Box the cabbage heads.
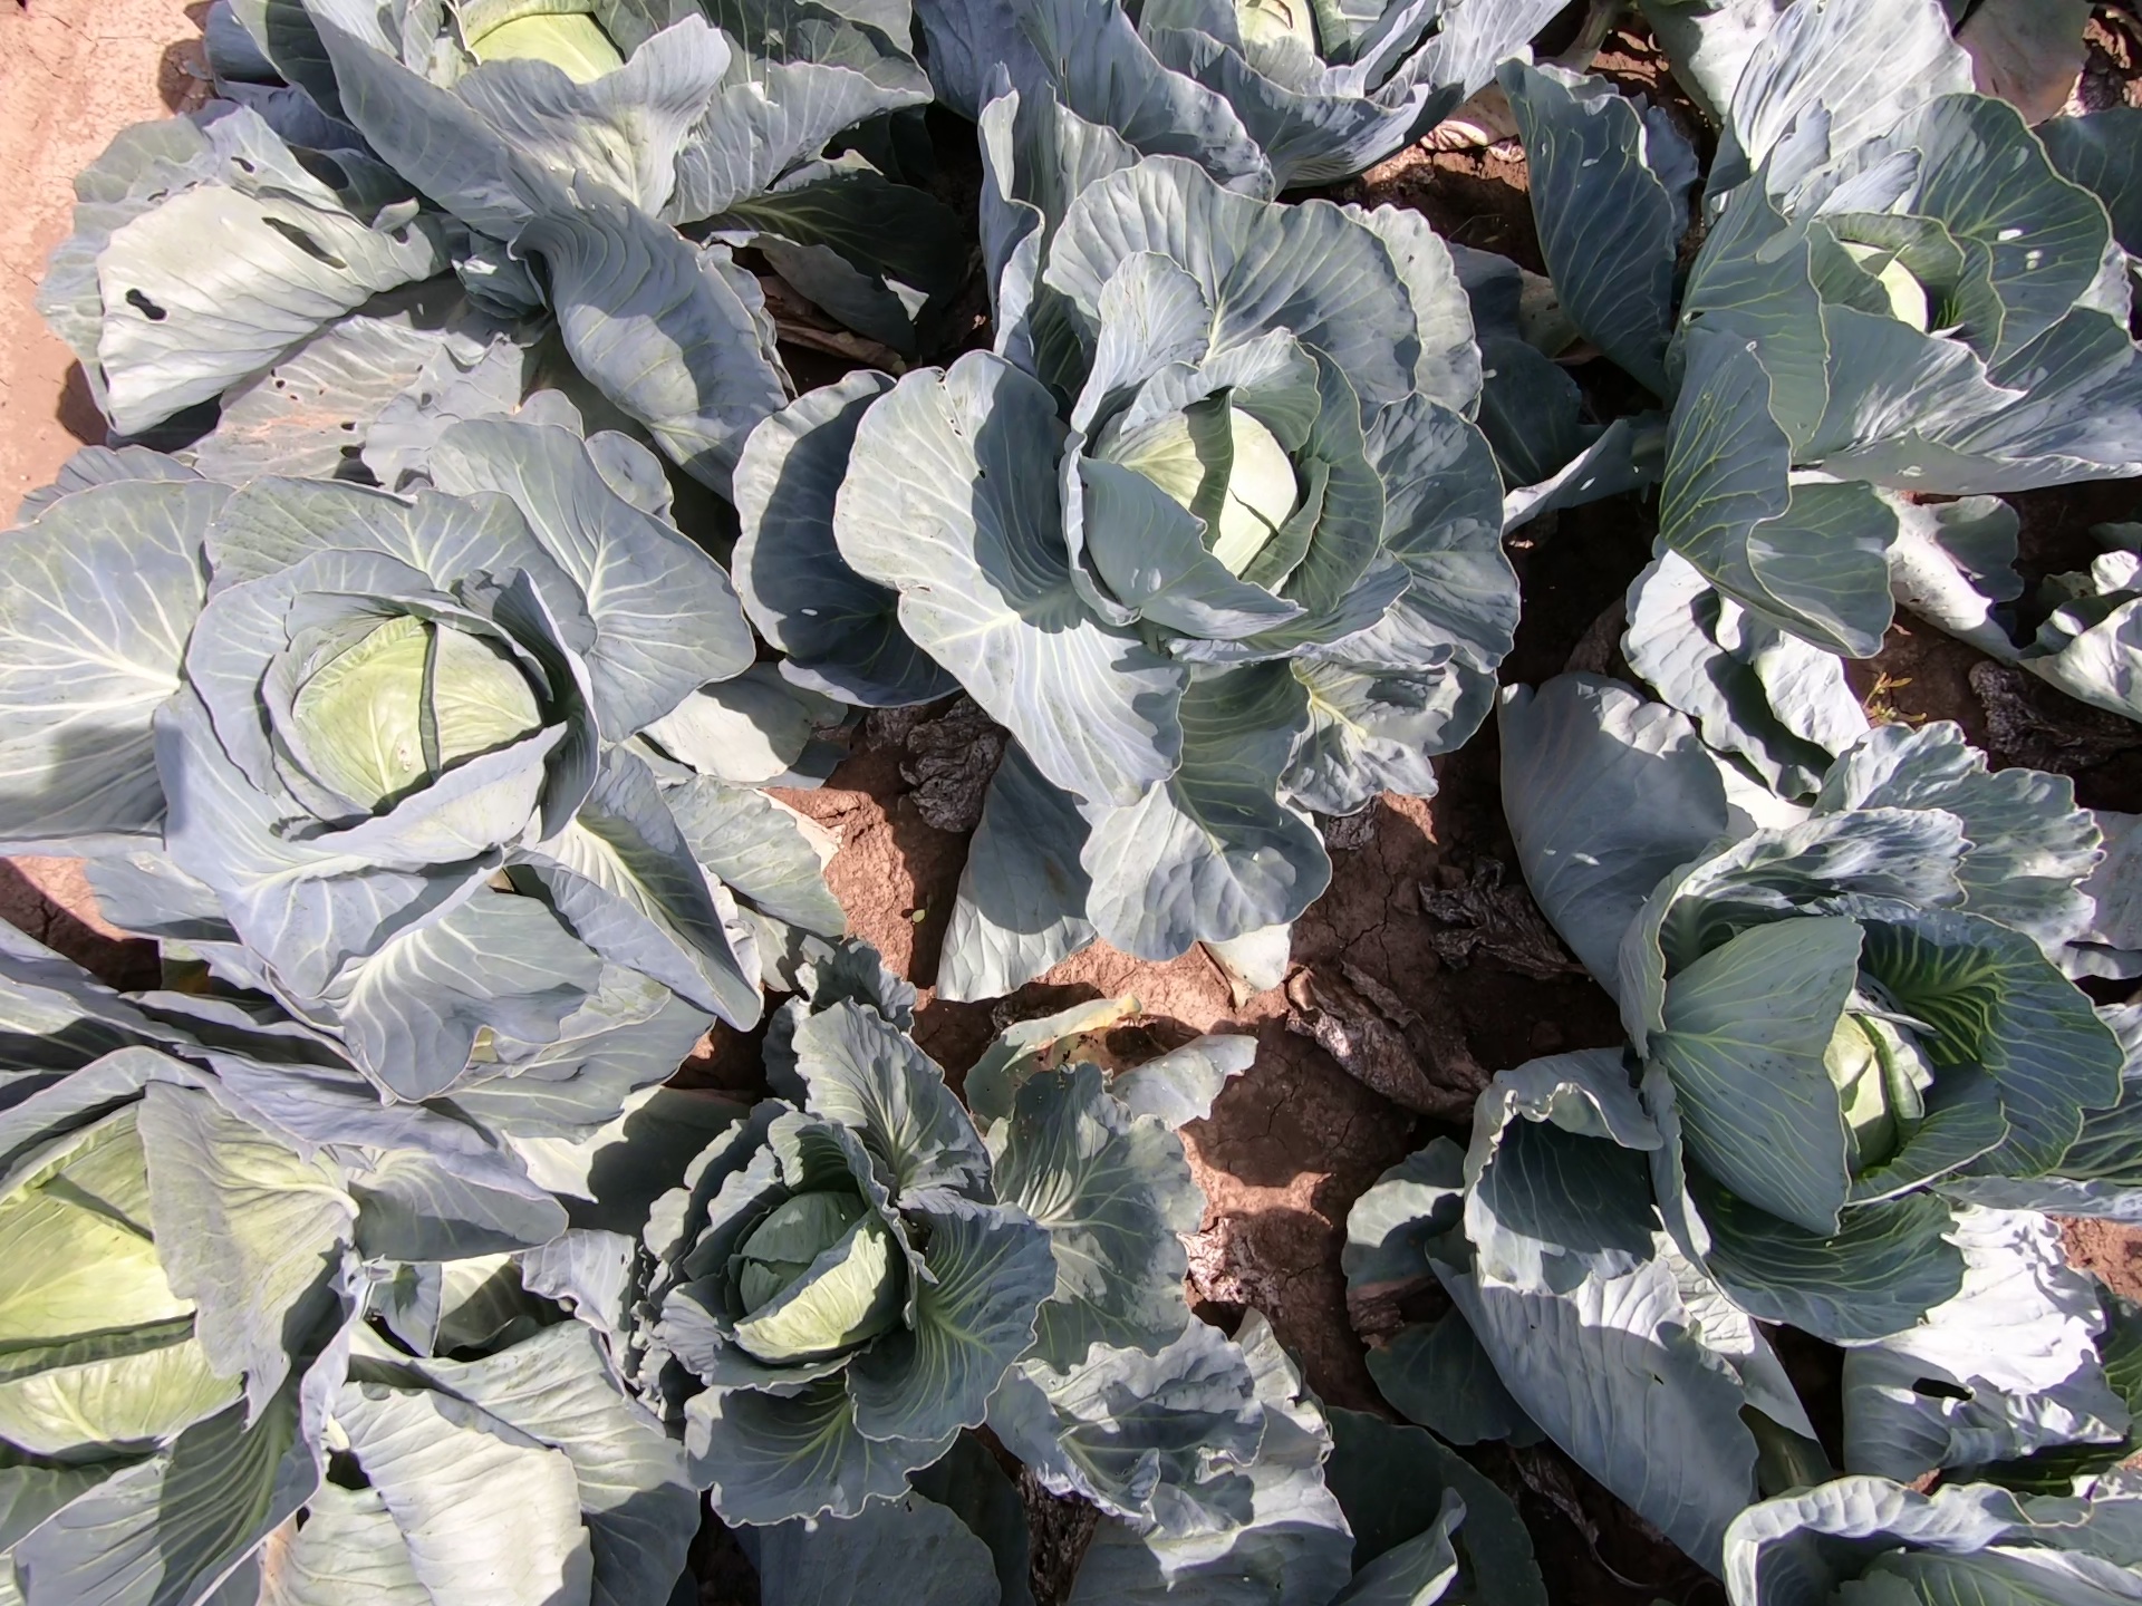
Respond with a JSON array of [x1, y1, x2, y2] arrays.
[[2, 1082, 353, 1453], [725, 1192, 904, 1366], [1694, 968, 1938, 1194], [415, 2, 685, 232], [1756, 224, 1934, 410], [1080, 397, 1305, 639], [1132, 2, 1326, 147], [262, 600, 548, 868]]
